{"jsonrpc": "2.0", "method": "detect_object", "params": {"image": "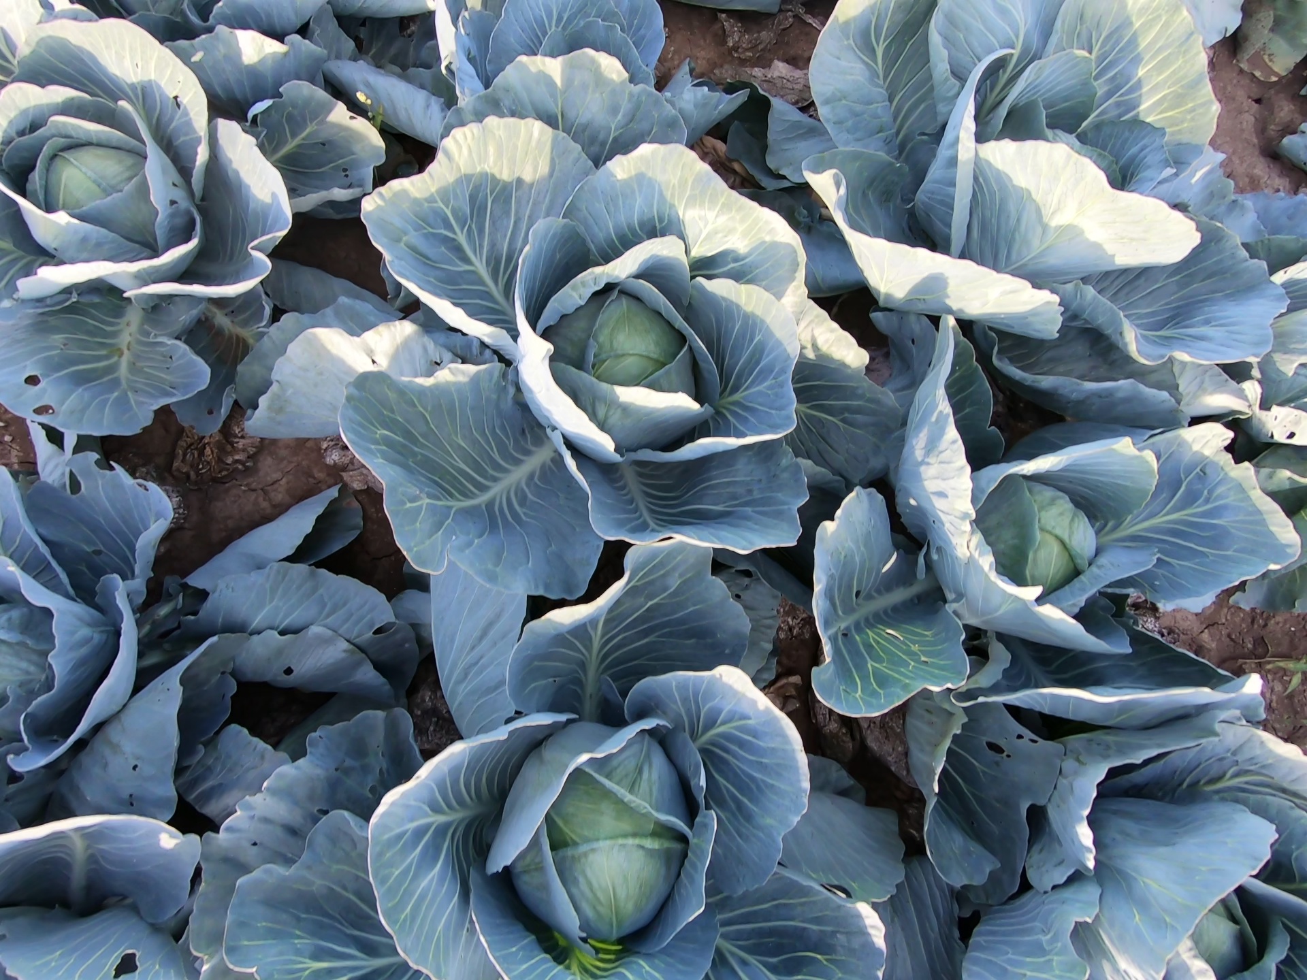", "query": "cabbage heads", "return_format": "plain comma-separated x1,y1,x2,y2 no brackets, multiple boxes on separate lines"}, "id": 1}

0,607,61,723
978,480,1099,602
1085,843,1252,979
541,286,696,446
35,143,177,250
511,721,689,936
